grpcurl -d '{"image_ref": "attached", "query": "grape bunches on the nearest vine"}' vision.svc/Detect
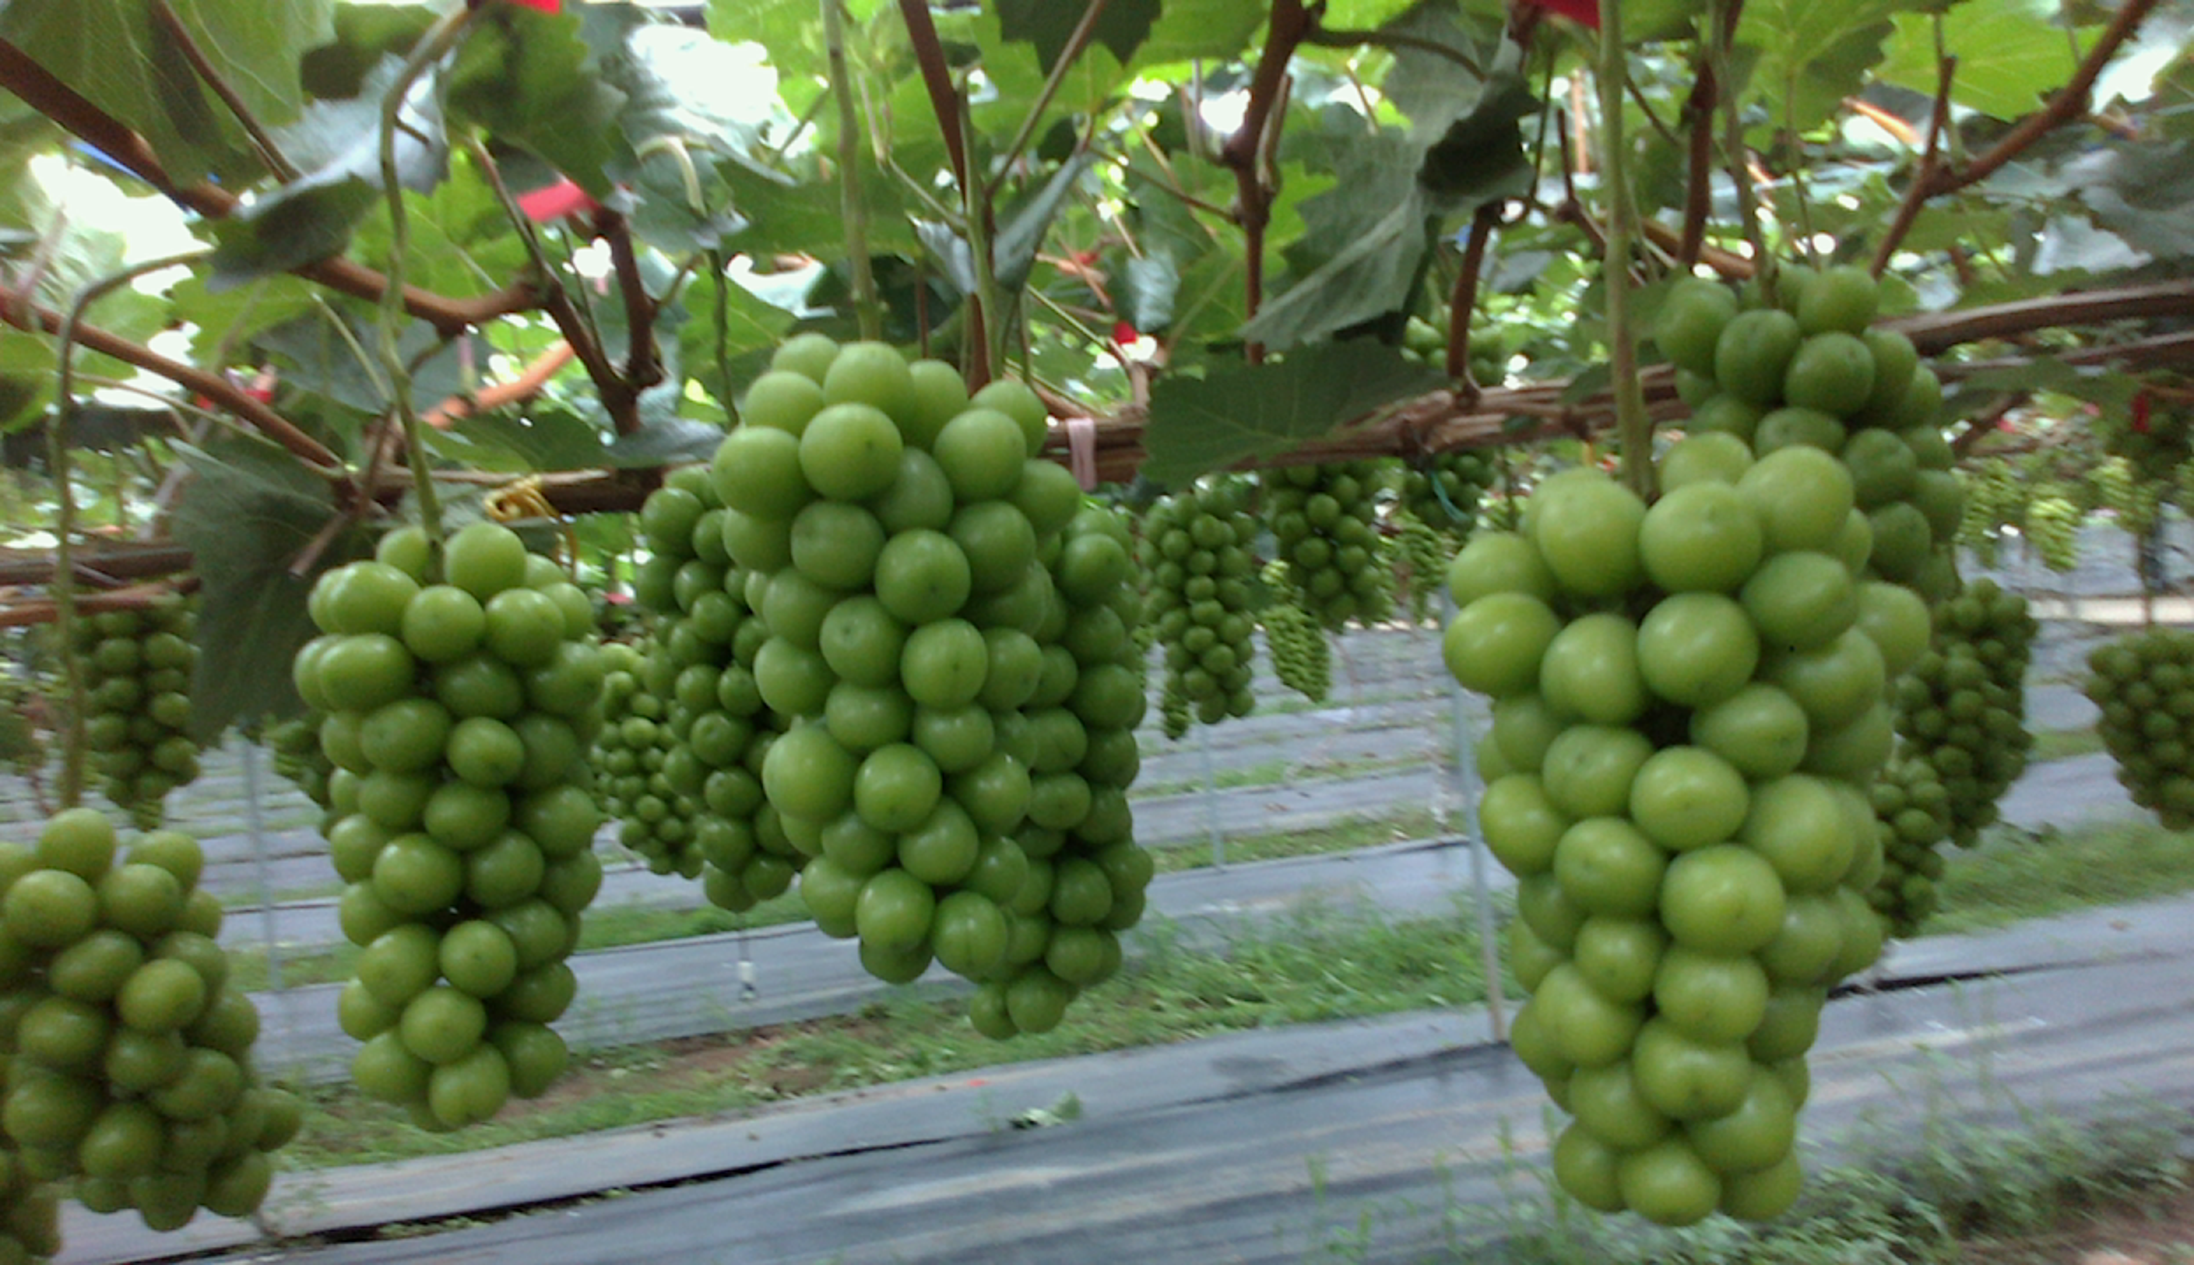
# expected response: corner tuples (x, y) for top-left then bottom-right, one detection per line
(290, 520), (608, 1131)
(0, 806), (308, 1233)
(965, 506), (1153, 1042)
(1438, 436), (1927, 1226)
(714, 334), (1079, 987)
(633, 467), (802, 915)
(1658, 267), (1967, 601)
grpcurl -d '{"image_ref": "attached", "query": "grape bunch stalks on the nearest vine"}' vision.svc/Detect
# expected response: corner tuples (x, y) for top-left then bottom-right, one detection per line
(1596, 0), (1661, 501)
(373, 9), (471, 582)
(821, 2), (884, 339)
(49, 249), (206, 806)
(958, 74), (1002, 378)
(1707, 2), (1784, 304)
(635, 135), (742, 432)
